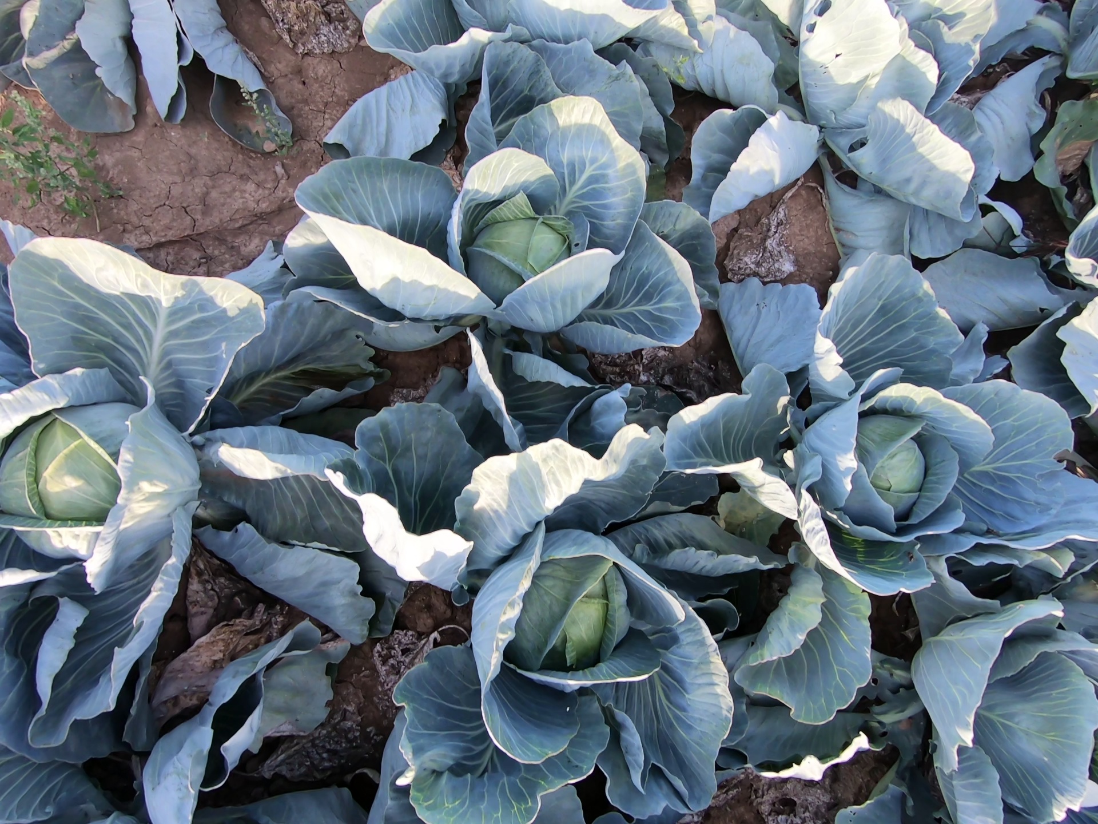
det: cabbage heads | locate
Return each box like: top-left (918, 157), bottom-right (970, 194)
top-left (836, 433), bottom-right (928, 527)
top-left (498, 538), bottom-right (631, 674)
top-left (468, 216), bottom-right (579, 316)
top-left (0, 401), bottom-right (189, 560)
